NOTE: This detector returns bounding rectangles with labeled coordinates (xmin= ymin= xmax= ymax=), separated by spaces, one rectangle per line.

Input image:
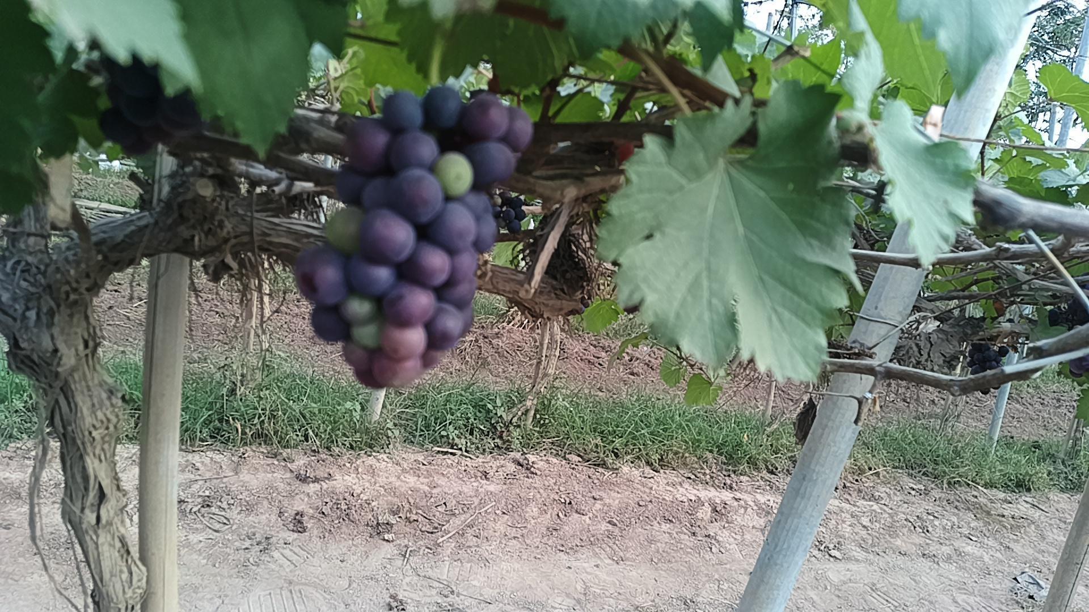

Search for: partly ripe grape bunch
xmin=295 ymin=86 xmax=533 ymax=388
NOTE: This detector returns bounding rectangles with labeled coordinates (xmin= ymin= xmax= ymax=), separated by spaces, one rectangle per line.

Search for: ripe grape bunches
xmin=99 ymin=54 xmax=204 ymax=155
xmin=1049 ymin=297 xmax=1088 ymax=377
xmin=487 ymin=189 xmax=539 ymax=233
xmin=965 ymin=342 xmax=1011 ymax=394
